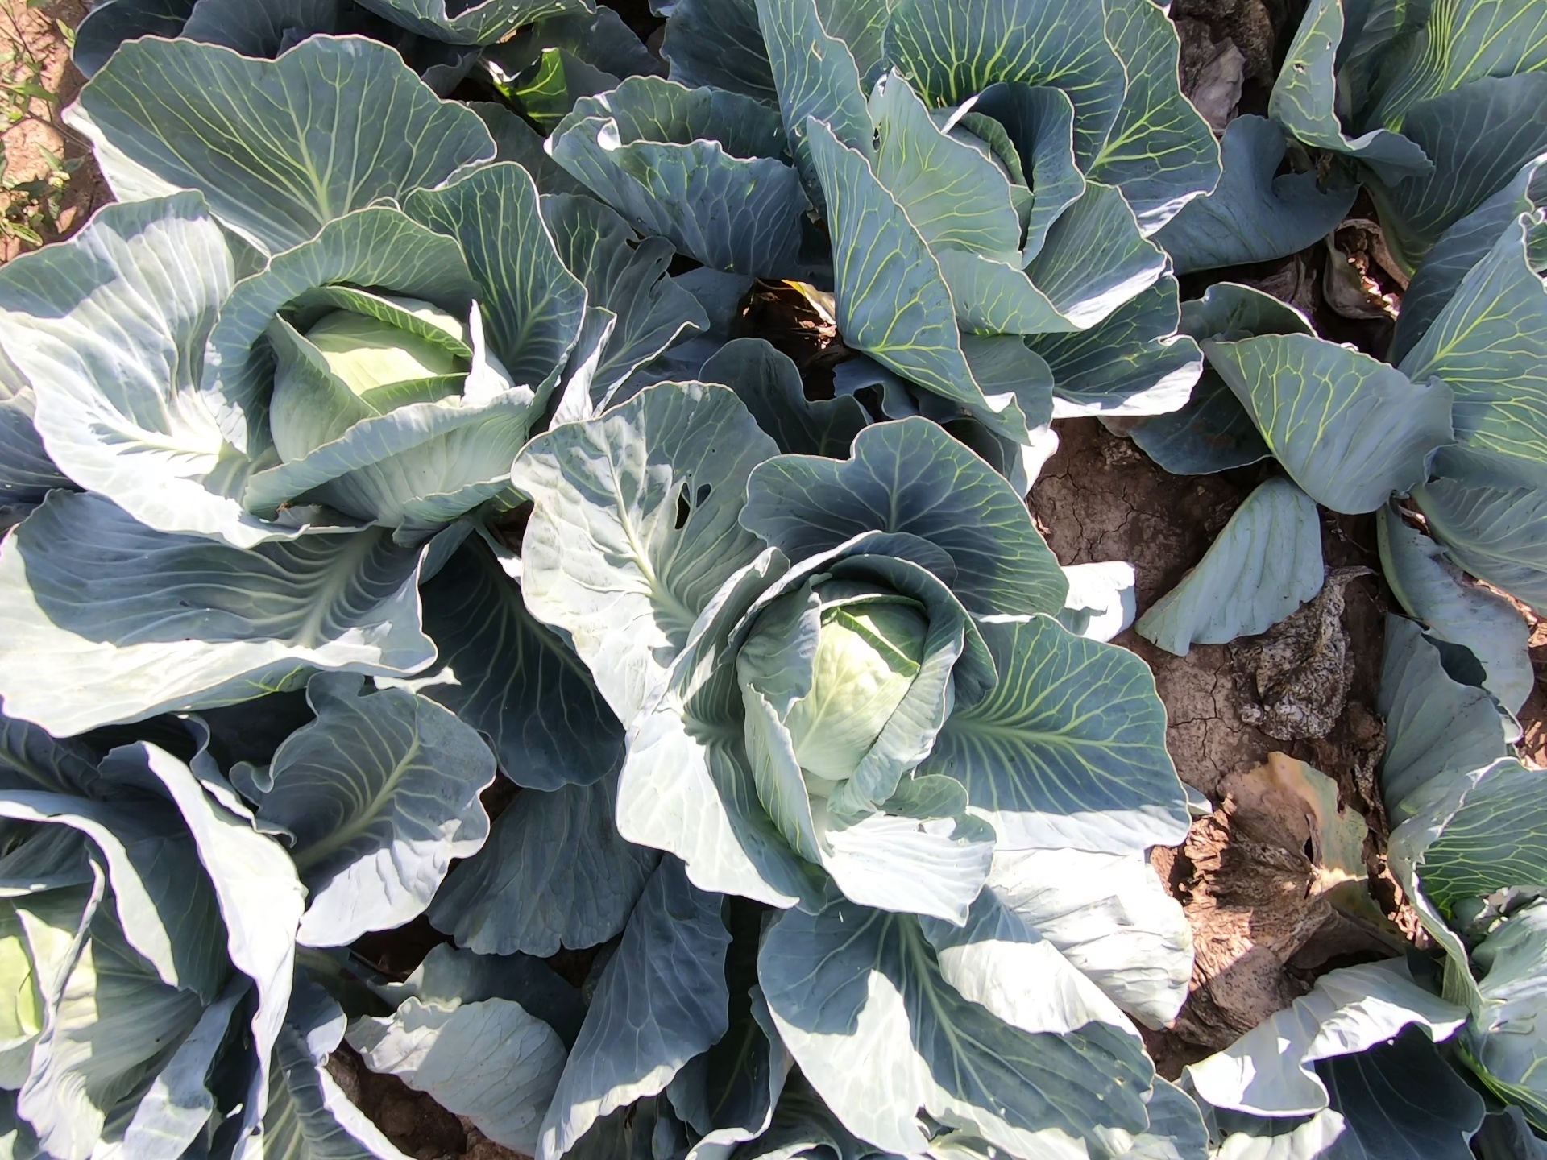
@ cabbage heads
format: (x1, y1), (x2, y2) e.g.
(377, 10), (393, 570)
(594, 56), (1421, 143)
(761, 581), (956, 776)
(277, 296), (521, 514)
(904, 121), (1010, 247)
(2, 862), (216, 1088)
